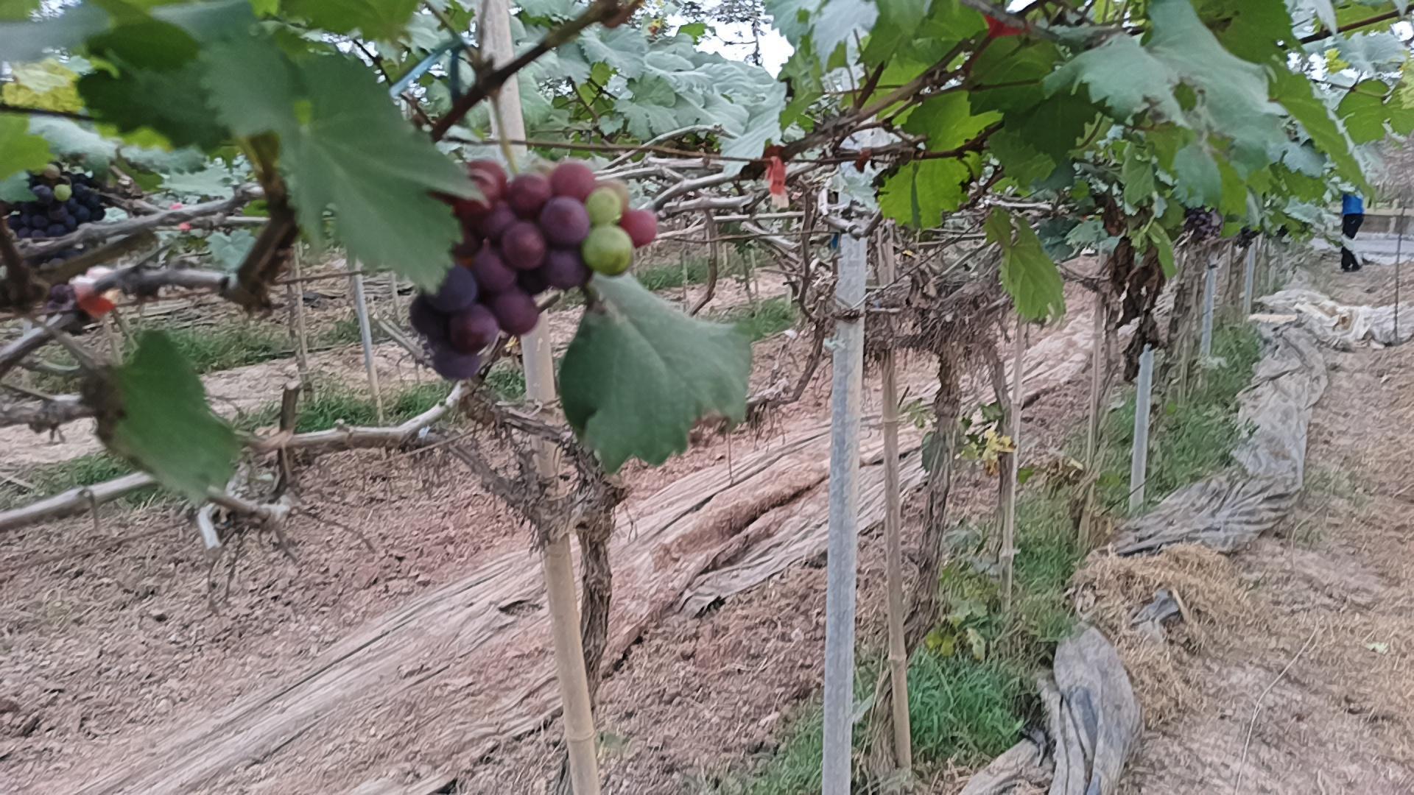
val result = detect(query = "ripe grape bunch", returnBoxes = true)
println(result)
[1183,206,1222,241]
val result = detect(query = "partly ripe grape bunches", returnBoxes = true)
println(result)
[410,160,657,380]
[7,161,108,239]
